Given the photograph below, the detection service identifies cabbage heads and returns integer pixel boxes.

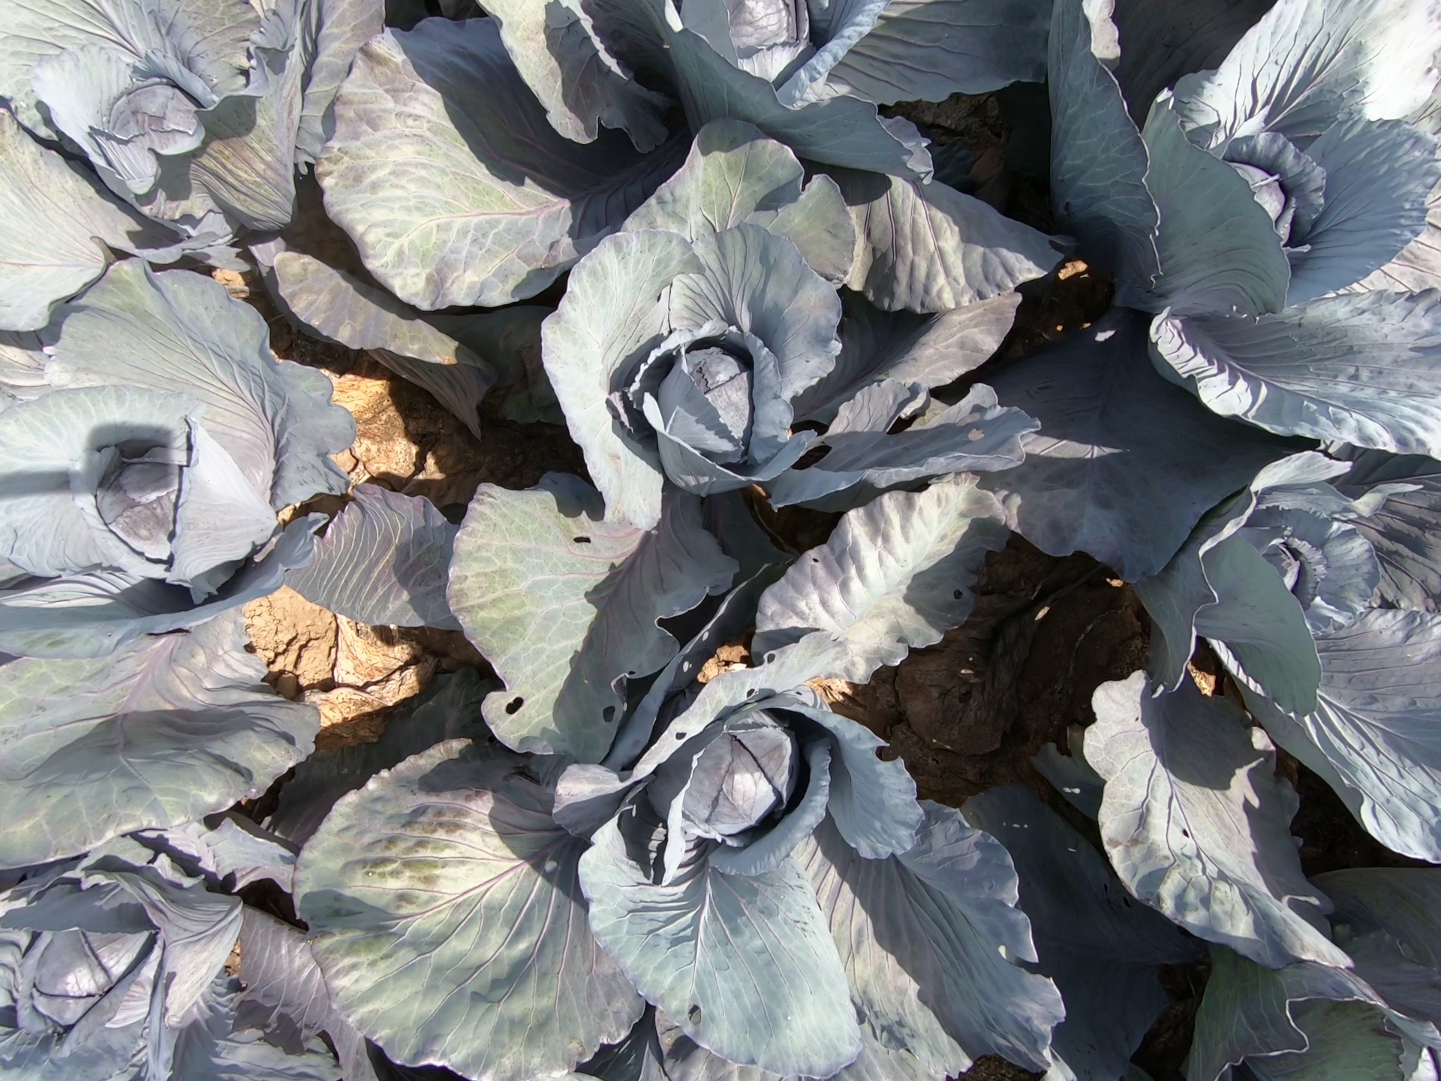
[679,2,817,104]
[29,888,194,1031]
[1192,161,1289,265]
[660,348,765,451]
[104,83,233,216]
[663,708,796,836]
[96,453,215,559]
[1214,542,1302,614]
[1247,972,1439,1079]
